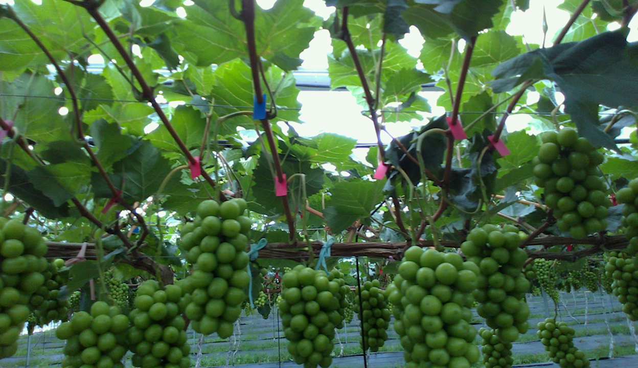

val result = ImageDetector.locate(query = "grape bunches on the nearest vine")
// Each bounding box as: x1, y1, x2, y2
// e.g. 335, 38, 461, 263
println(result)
385, 246, 480, 367
279, 264, 341, 367
55, 301, 130, 367
461, 224, 531, 345
0, 216, 48, 360
532, 127, 612, 241
175, 197, 253, 339
128, 279, 191, 367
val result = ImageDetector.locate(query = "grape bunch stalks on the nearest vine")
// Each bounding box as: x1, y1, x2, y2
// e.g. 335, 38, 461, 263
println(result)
286, 173, 314, 269
213, 110, 254, 204
476, 145, 491, 223
1, 127, 20, 217
551, 102, 563, 132
97, 228, 105, 301
416, 128, 445, 251
154, 165, 190, 290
